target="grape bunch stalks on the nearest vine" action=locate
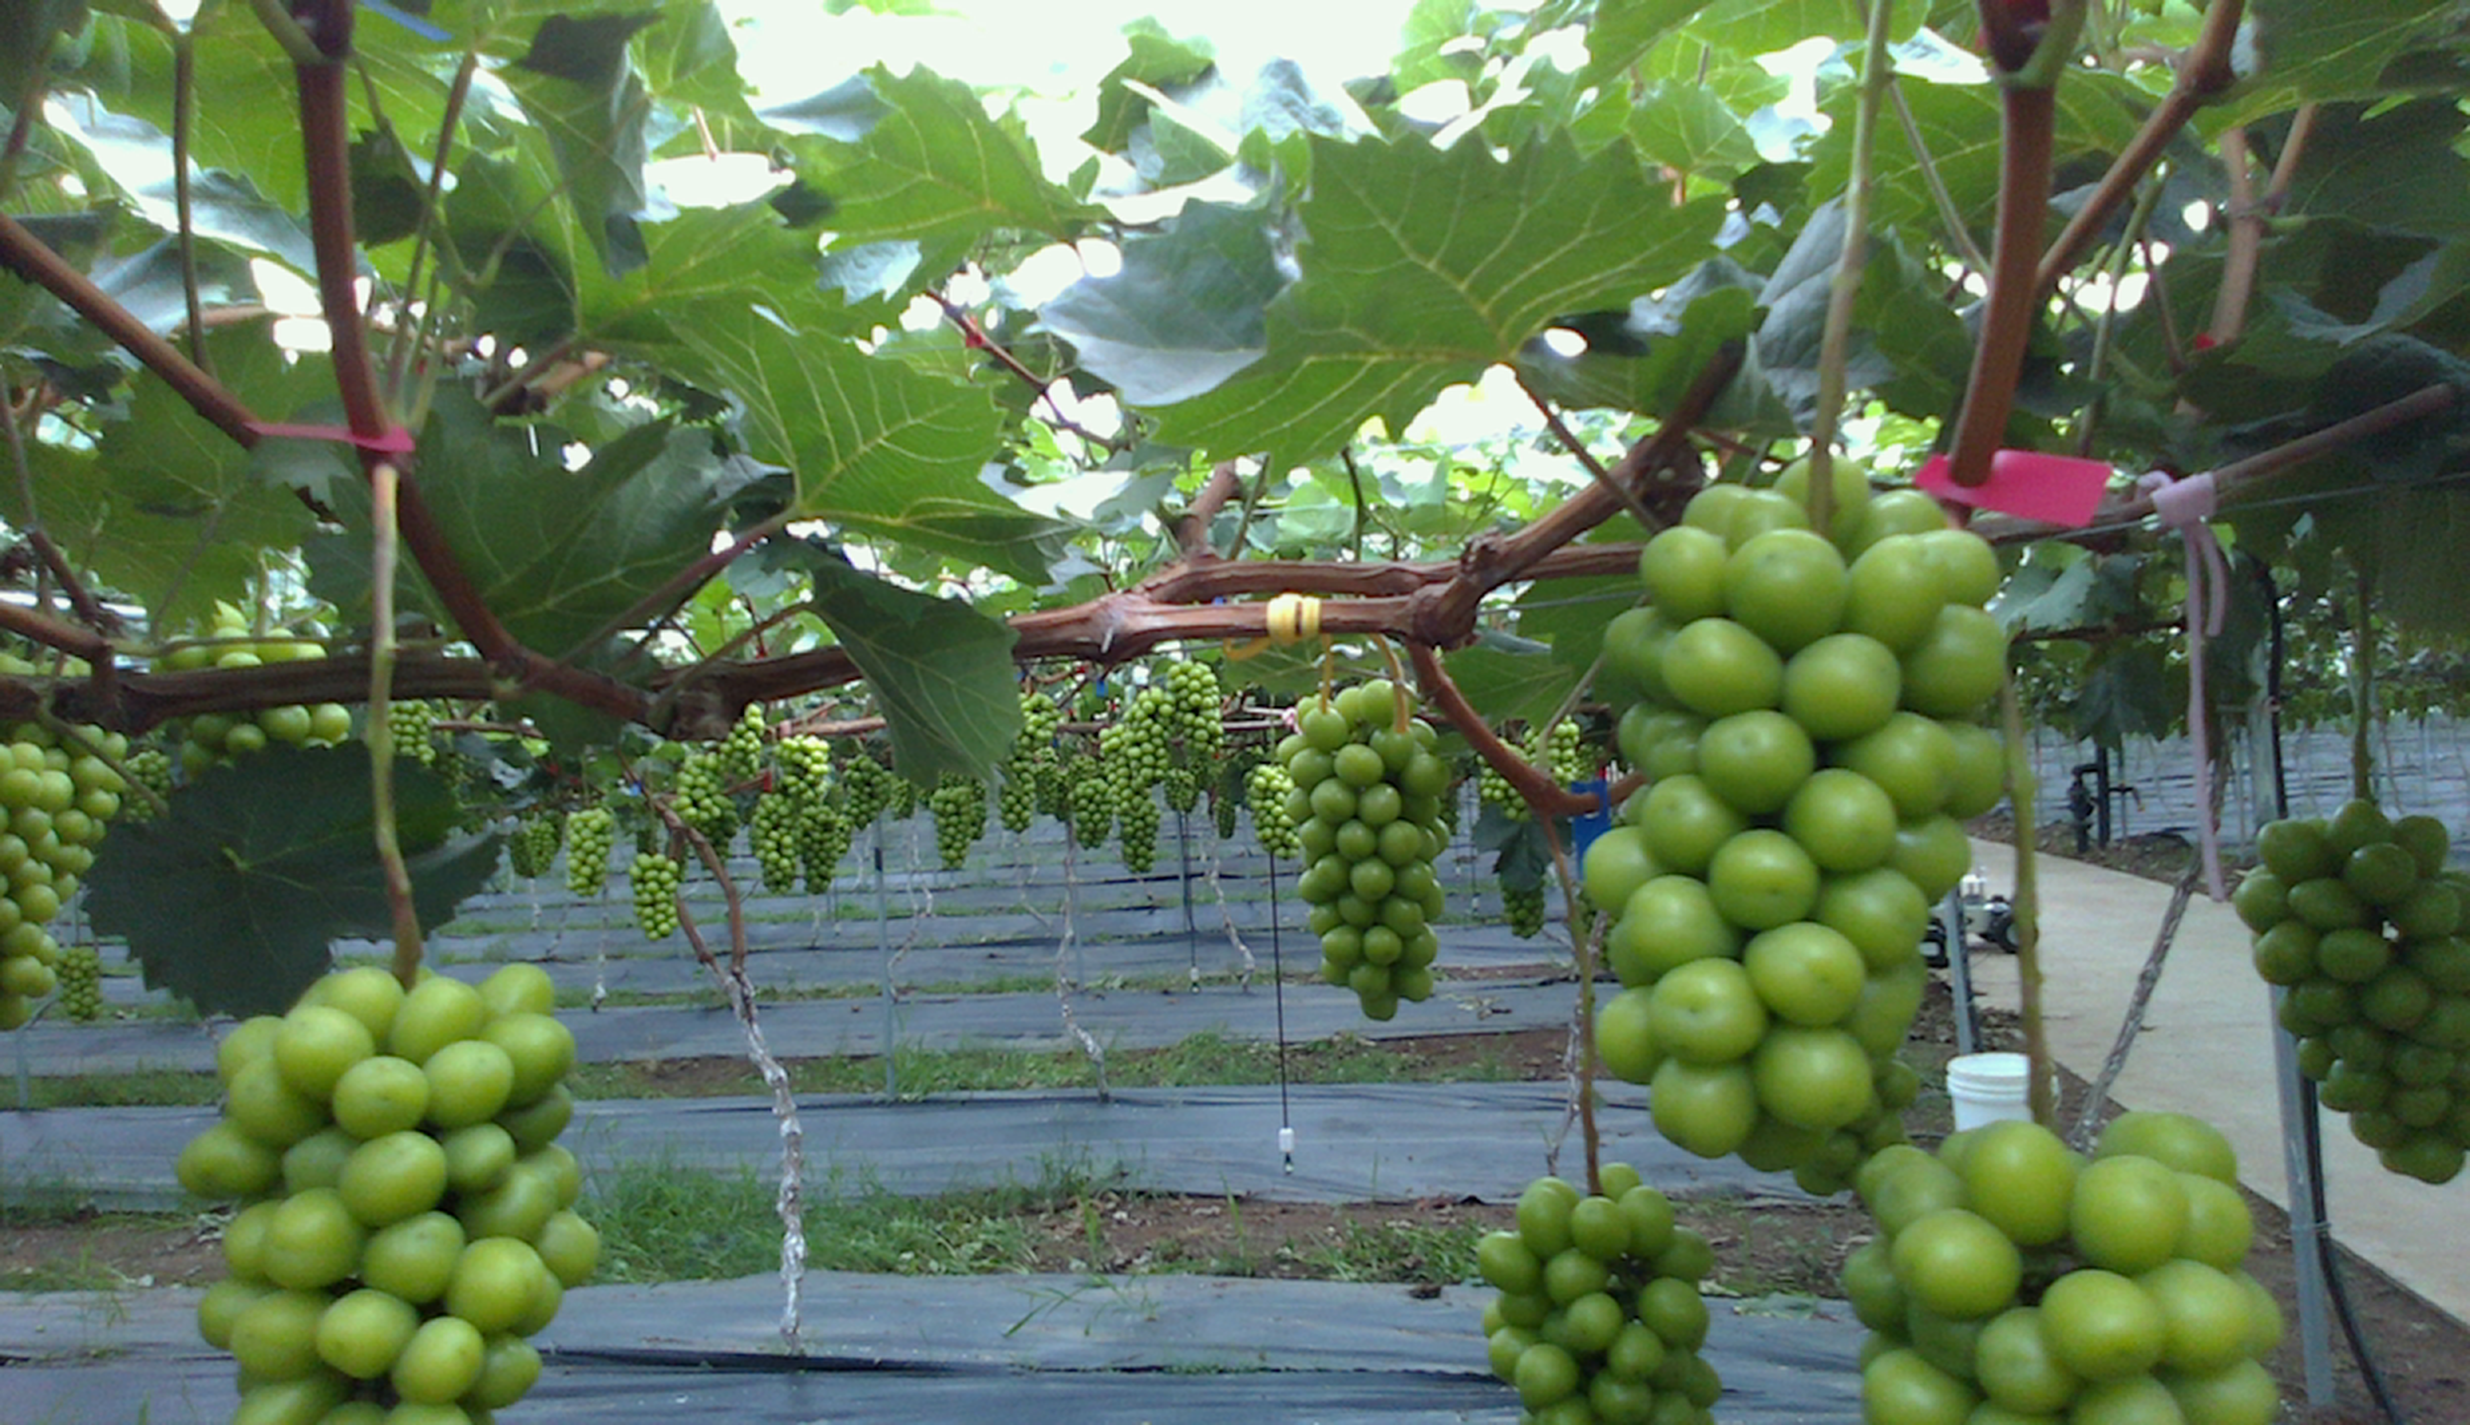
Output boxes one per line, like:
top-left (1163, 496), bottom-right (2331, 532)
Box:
top-left (1997, 681), bottom-right (2058, 1128)
top-left (1807, 0), bottom-right (1892, 534)
top-left (368, 465), bottom-right (420, 980)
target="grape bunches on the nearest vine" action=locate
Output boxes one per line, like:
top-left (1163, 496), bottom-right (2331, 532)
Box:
top-left (172, 964), bottom-right (596, 1423)
top-left (1837, 1112), bottom-right (2288, 1423)
top-left (1579, 461), bottom-right (2007, 1172)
